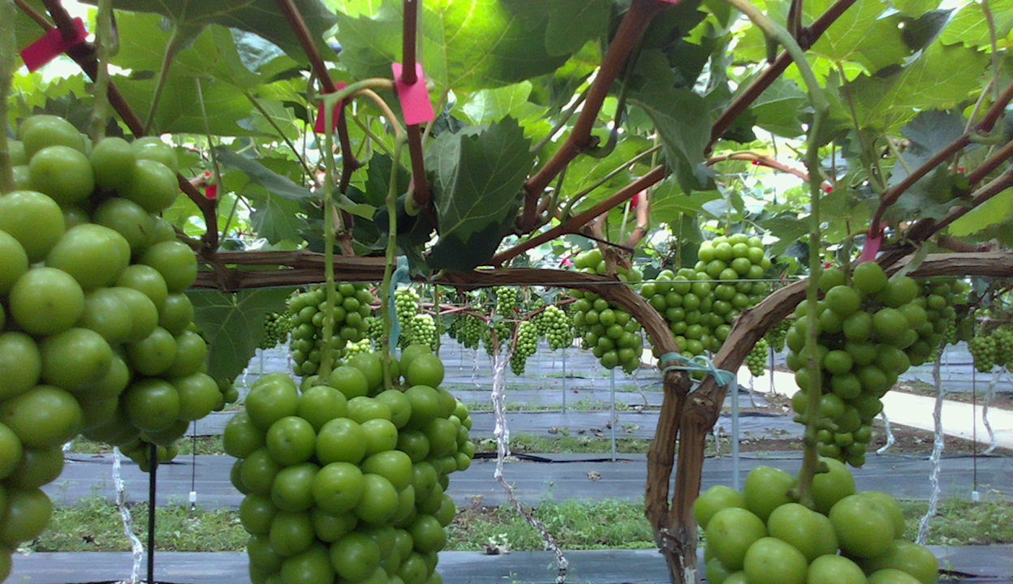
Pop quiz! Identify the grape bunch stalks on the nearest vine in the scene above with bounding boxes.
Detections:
[319,78,394,385]
[348,88,407,390]
[726,2,828,505]
[91,1,110,146]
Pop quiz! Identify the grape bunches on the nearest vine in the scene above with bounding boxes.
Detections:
[6,115,216,446]
[0,191,157,583]
[817,261,927,435]
[224,373,412,582]
[328,343,455,582]
[692,461,940,583]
